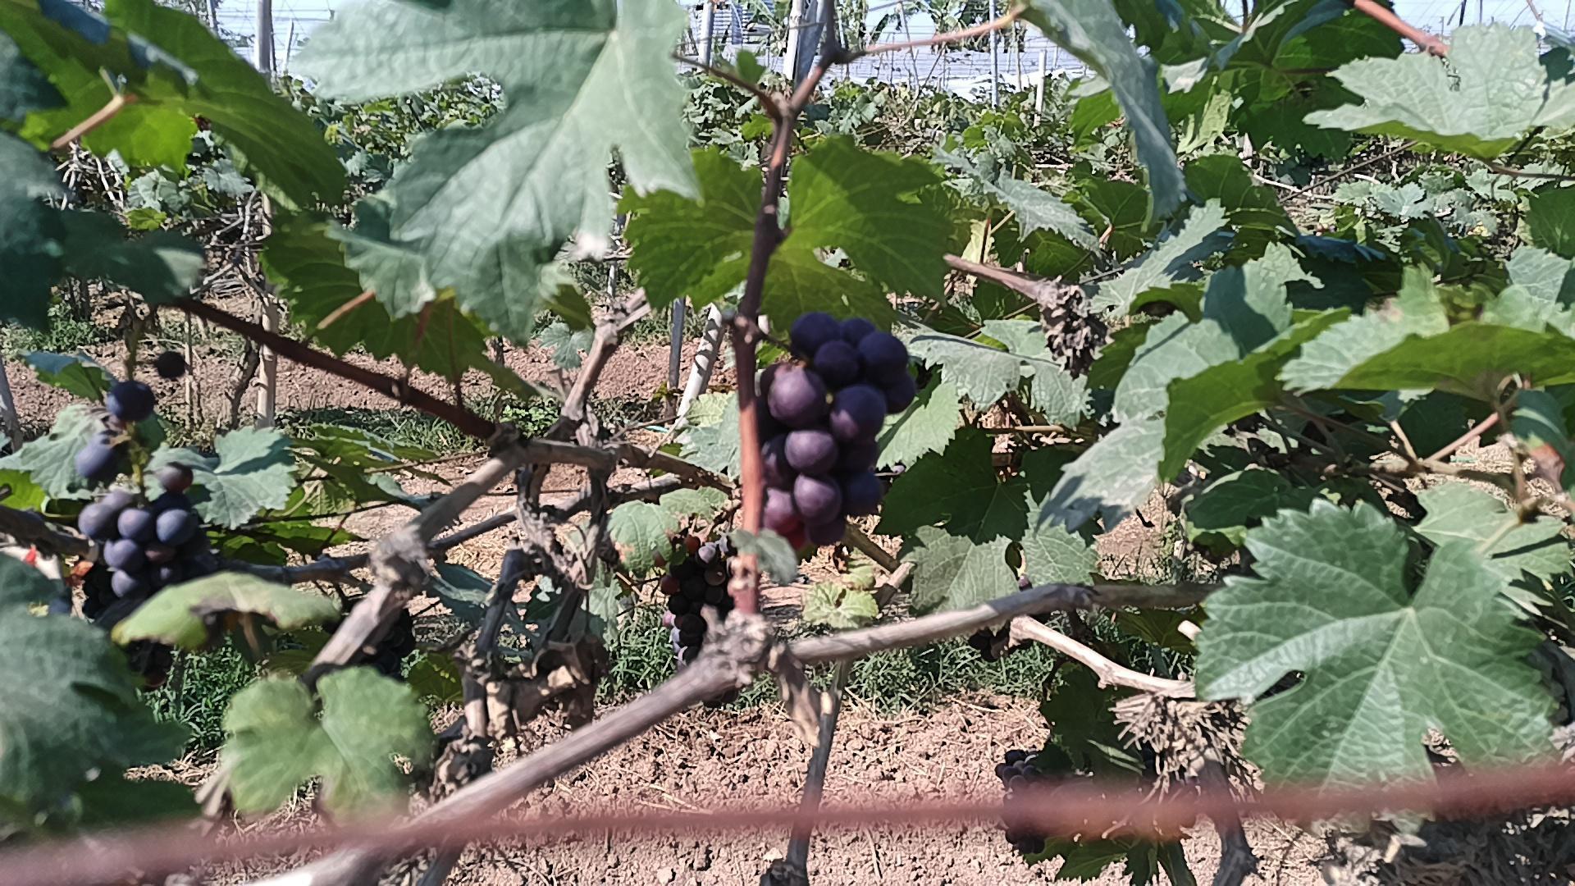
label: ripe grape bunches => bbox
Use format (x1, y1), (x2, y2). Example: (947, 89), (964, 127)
(756, 312), (916, 560)
(661, 531), (742, 715)
(73, 380), (249, 626)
